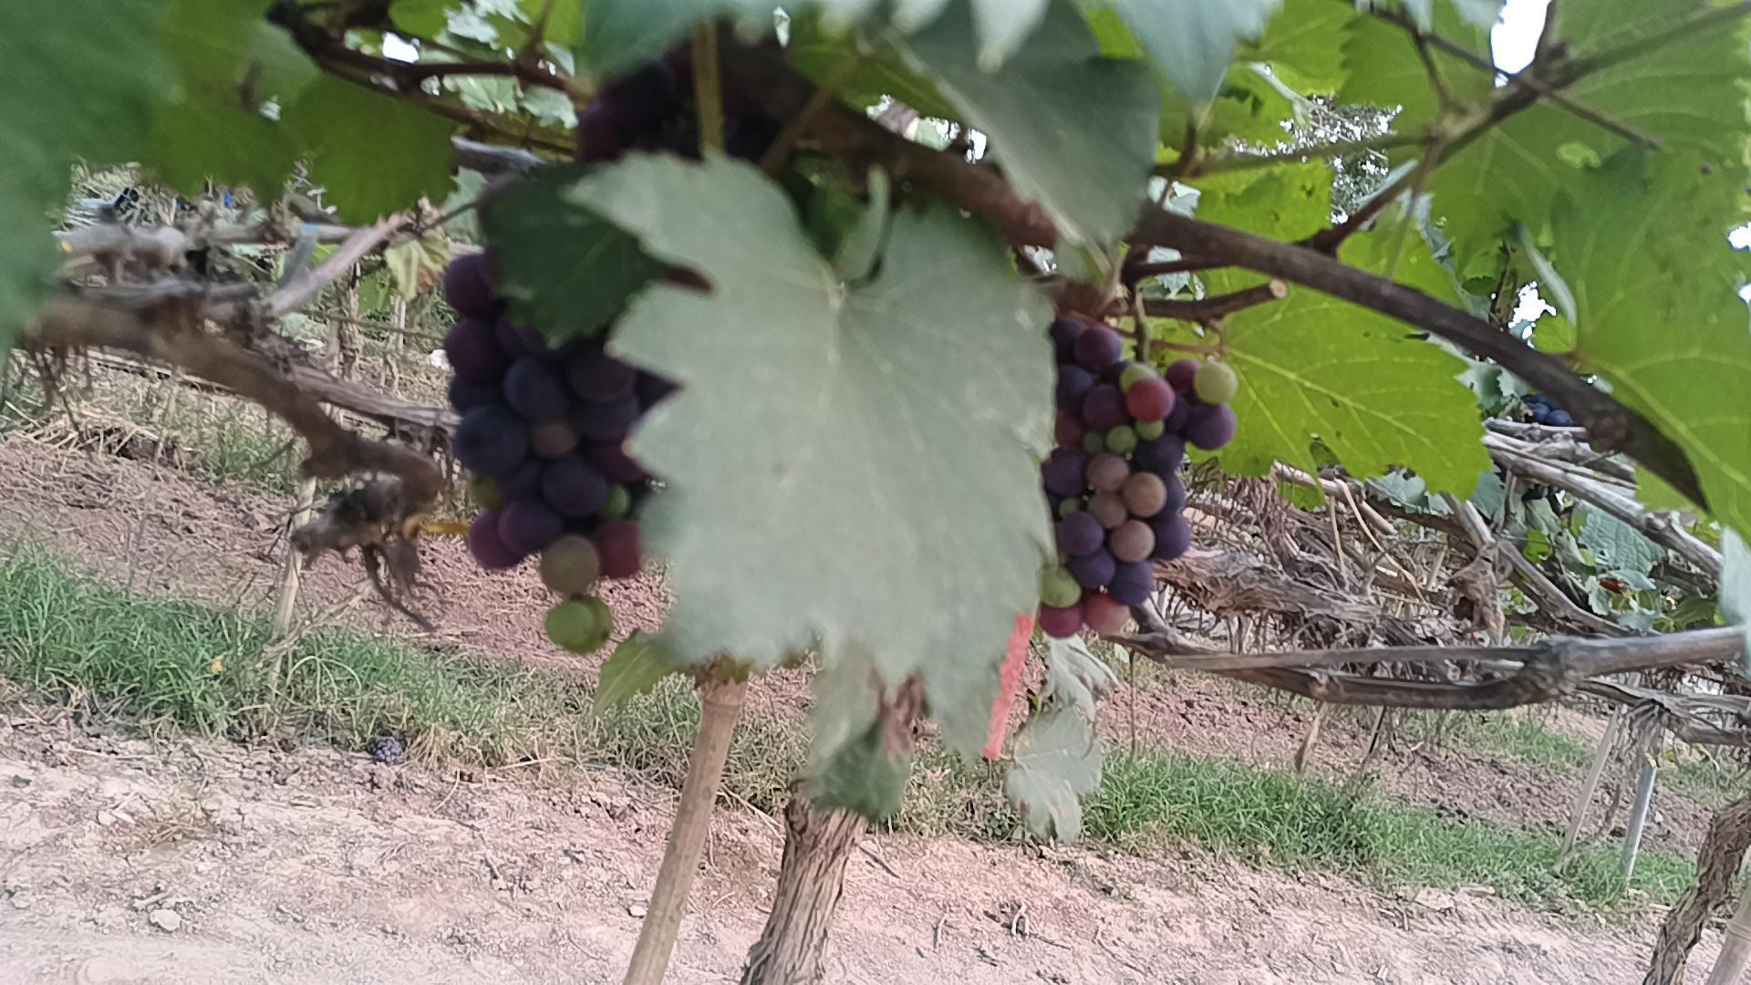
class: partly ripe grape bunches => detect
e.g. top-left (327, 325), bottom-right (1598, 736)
top-left (1037, 316), bottom-right (1236, 639)
top-left (444, 51), bottom-right (705, 652)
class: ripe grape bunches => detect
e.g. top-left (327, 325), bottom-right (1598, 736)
top-left (1522, 395), bottom-right (1575, 427)
top-left (1522, 485), bottom-right (1567, 513)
